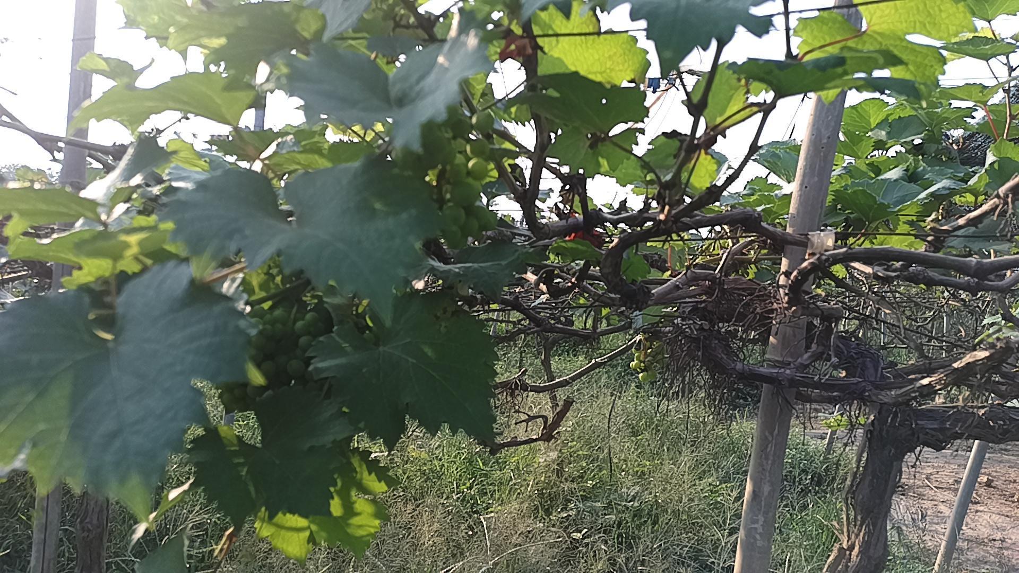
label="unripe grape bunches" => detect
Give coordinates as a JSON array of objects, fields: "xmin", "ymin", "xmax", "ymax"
[
  {"xmin": 421, "ymin": 108, "xmax": 505, "ymax": 248},
  {"xmin": 216, "ymin": 266, "xmax": 373, "ymax": 412},
  {"xmin": 629, "ymin": 332, "xmax": 666, "ymax": 382}
]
